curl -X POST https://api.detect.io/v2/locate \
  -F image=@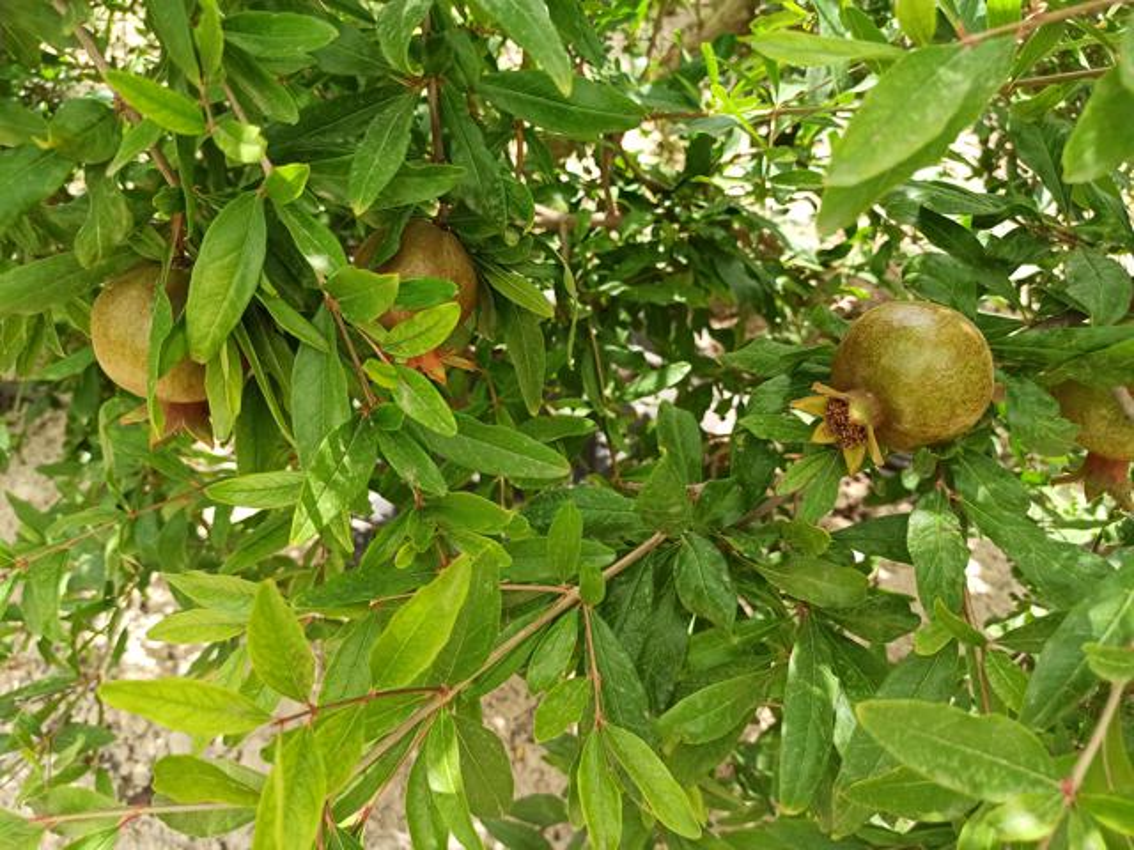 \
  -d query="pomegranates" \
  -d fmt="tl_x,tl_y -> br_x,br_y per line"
1051,379 -> 1134,510
788,299 -> 996,475
90,264 -> 214,450
353,220 -> 480,382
